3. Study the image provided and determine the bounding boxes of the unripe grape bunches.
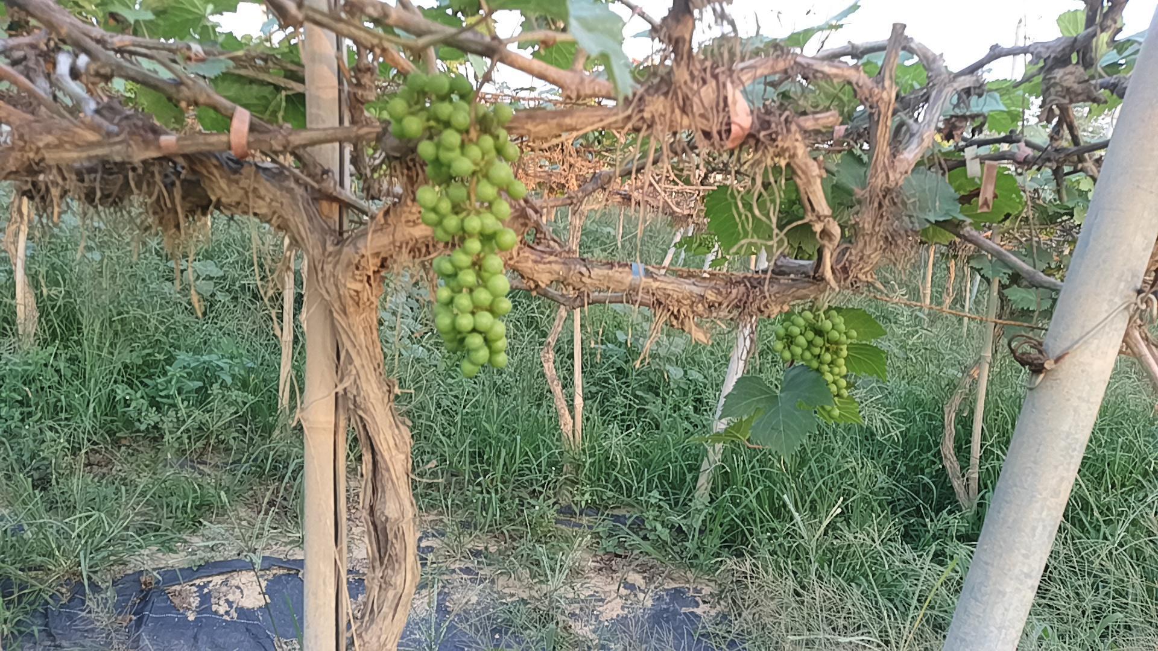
[772,310,857,399]
[369,71,528,379]
[823,405,839,420]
